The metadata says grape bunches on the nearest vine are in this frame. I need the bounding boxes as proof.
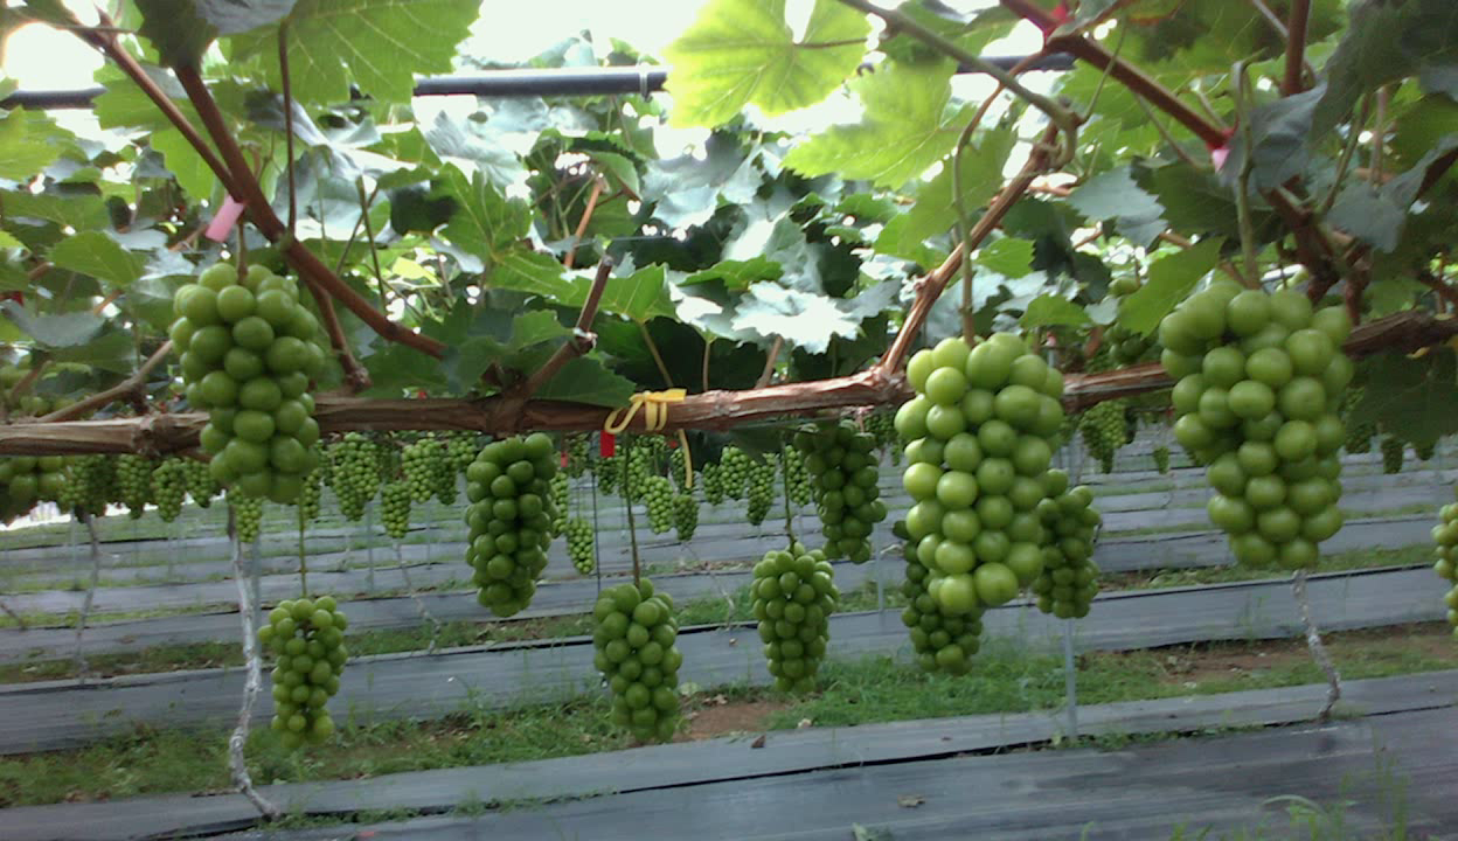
[893,332,1065,618]
[1158,280,1355,570]
[171,263,345,503]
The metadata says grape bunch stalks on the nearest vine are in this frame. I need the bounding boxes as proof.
[951,2,1132,352]
[237,213,247,284]
[1237,39,1287,291]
